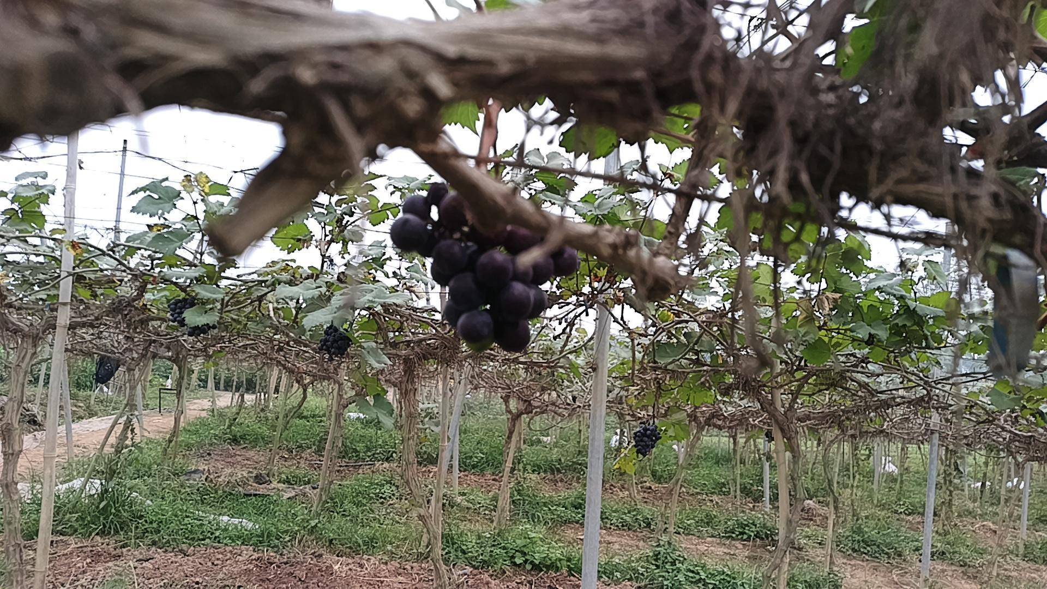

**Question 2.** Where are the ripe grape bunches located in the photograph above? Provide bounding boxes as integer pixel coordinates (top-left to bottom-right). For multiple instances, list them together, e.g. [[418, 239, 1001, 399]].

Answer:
[[390, 184, 579, 352], [631, 421, 663, 461], [168, 295, 216, 336], [318, 321, 352, 359]]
